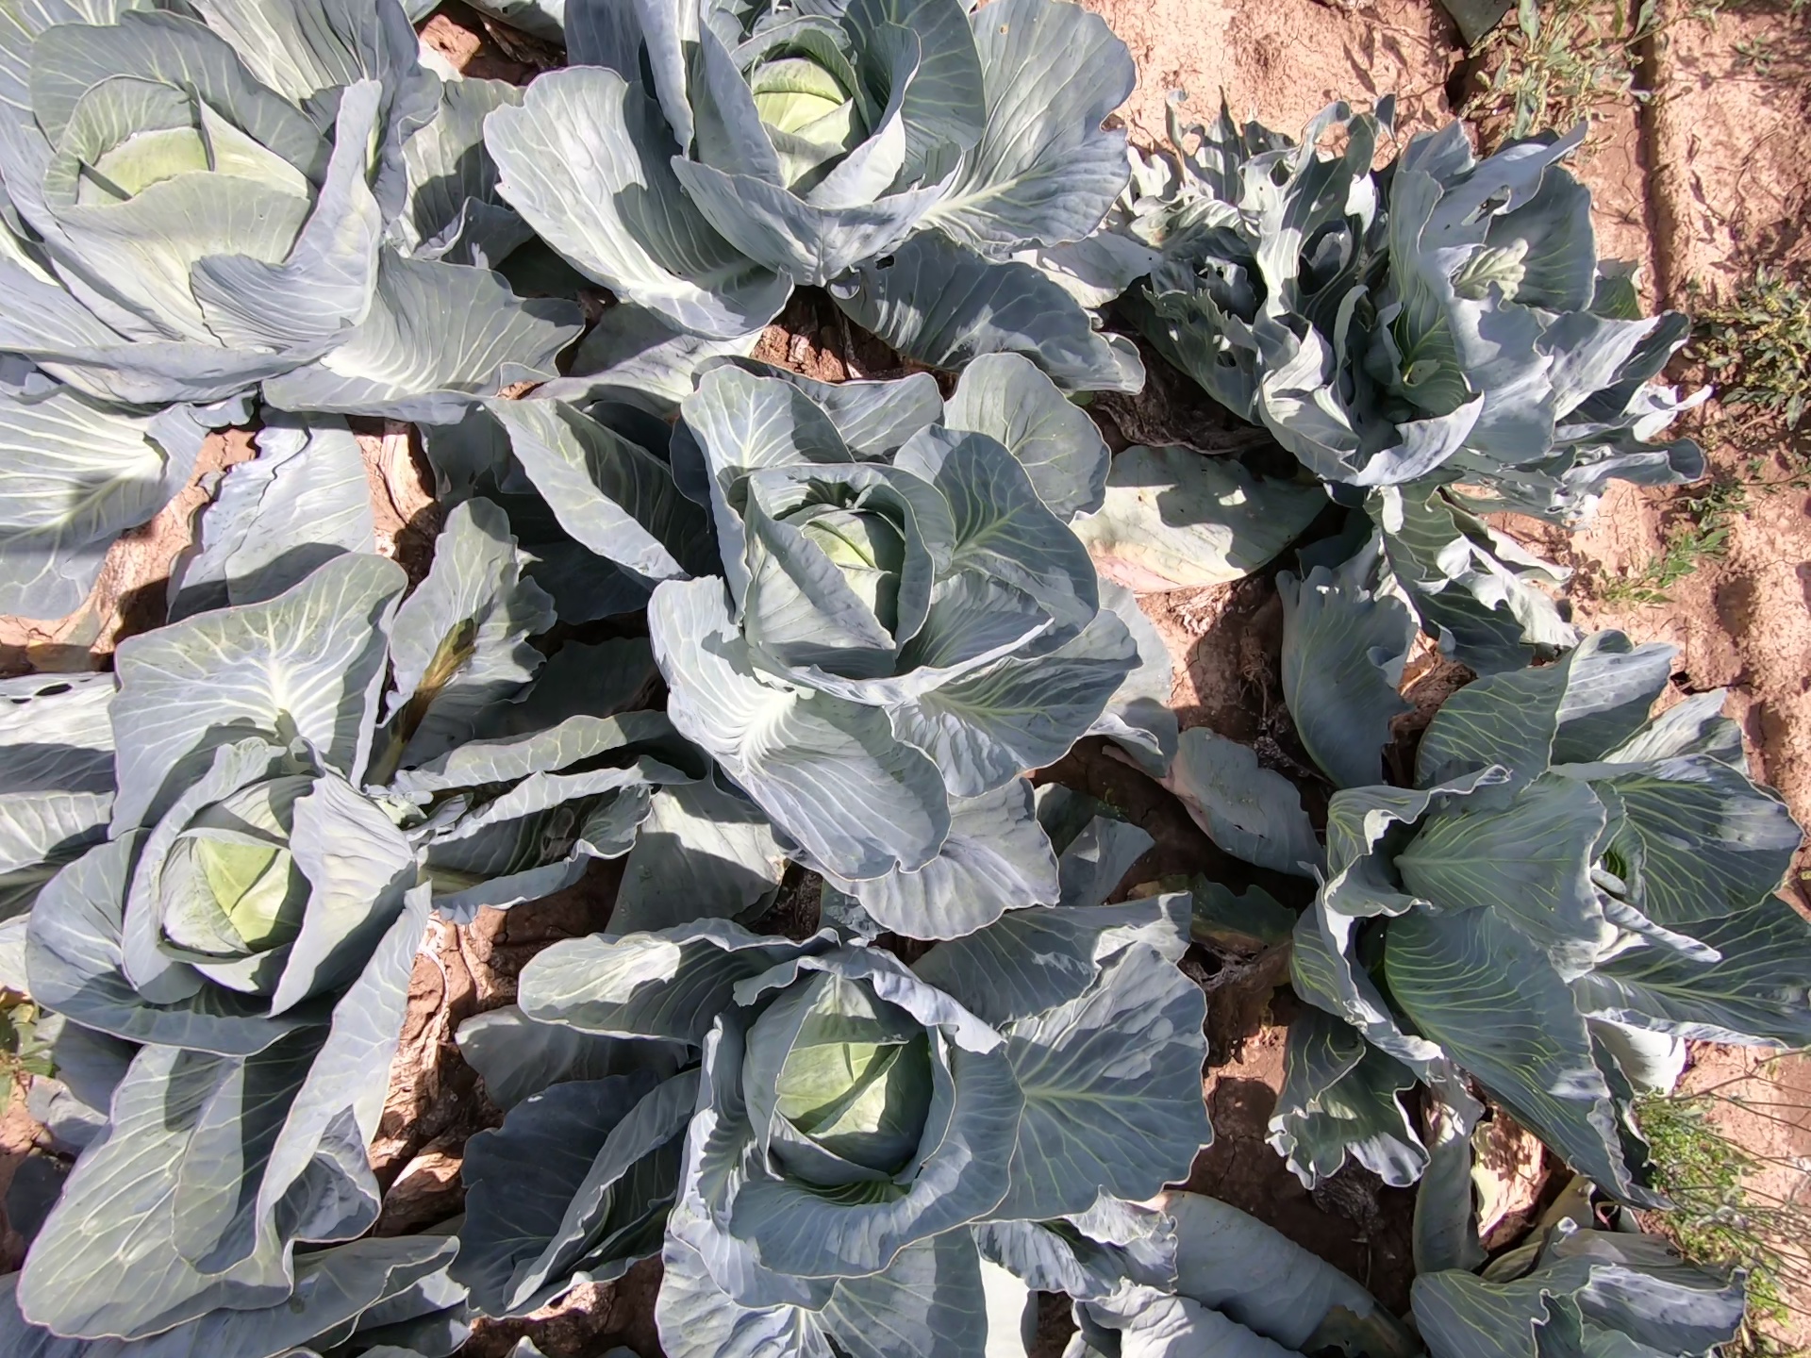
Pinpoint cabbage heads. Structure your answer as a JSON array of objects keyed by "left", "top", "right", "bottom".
[
  {"left": 1412, "top": 803, "right": 1624, "bottom": 979},
  {"left": 68, "top": 123, "right": 340, "bottom": 358},
  {"left": 156, "top": 774, "right": 406, "bottom": 1001},
  {"left": 738, "top": 975, "right": 937, "bottom": 1180},
  {"left": 754, "top": 499, "right": 923, "bottom": 668},
  {"left": 707, "top": 48, "right": 875, "bottom": 227}
]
